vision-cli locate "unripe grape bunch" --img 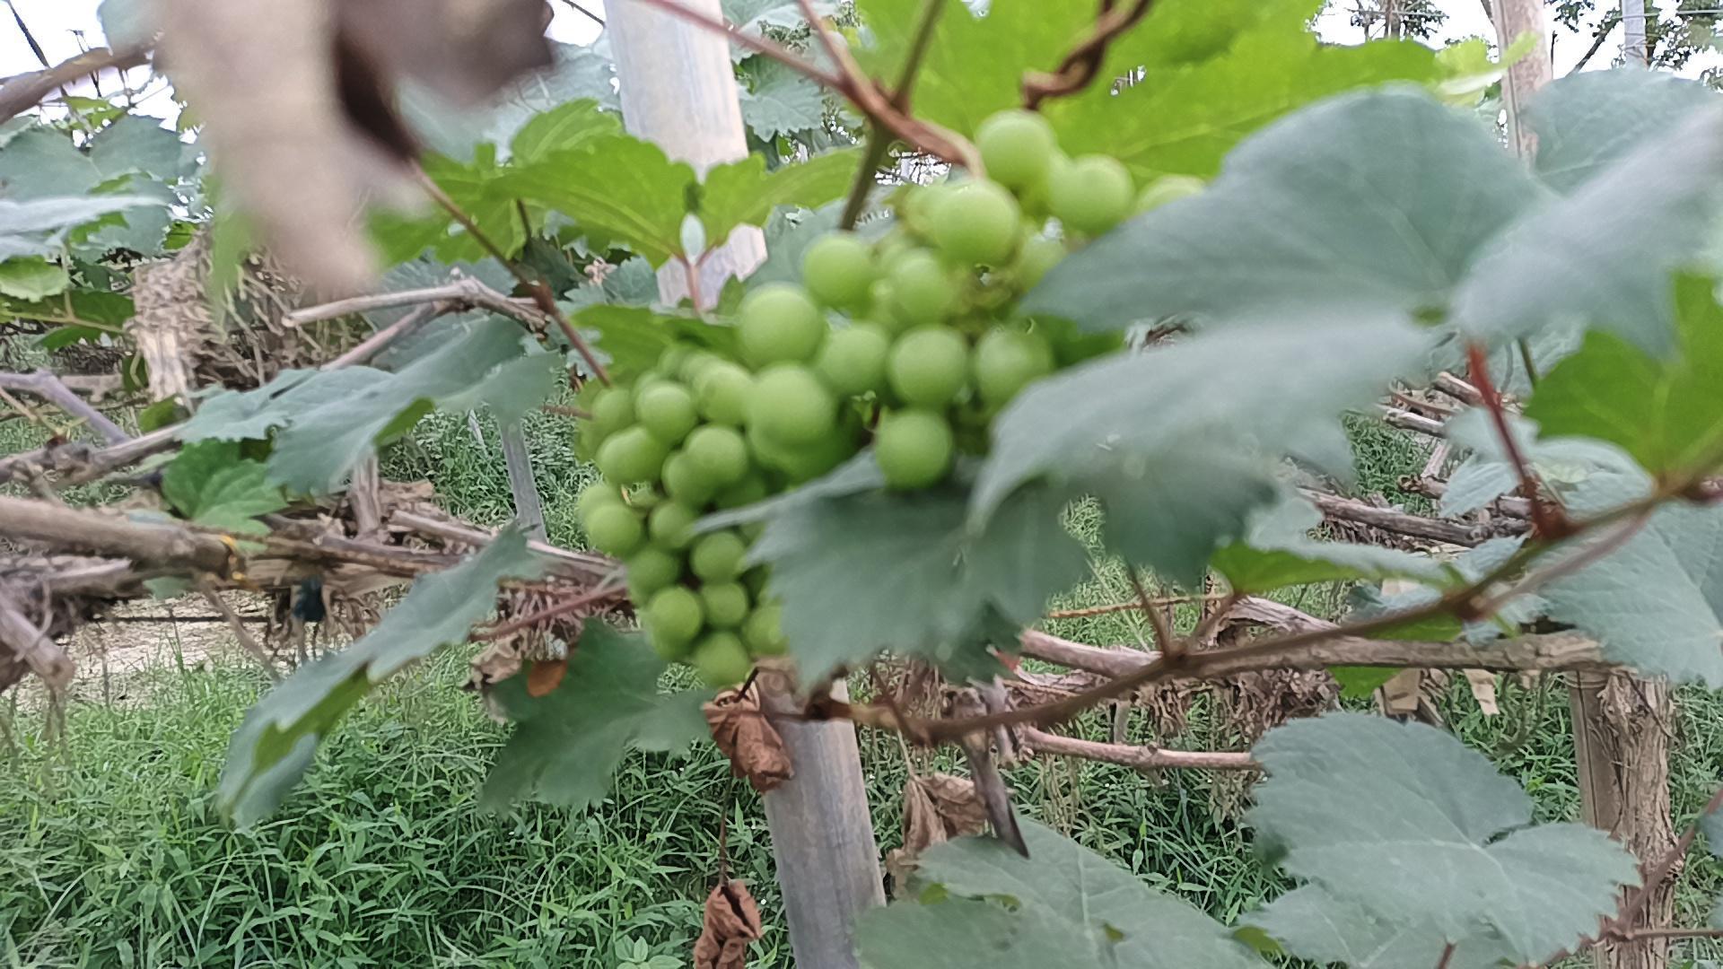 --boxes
[573,107,1211,687]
